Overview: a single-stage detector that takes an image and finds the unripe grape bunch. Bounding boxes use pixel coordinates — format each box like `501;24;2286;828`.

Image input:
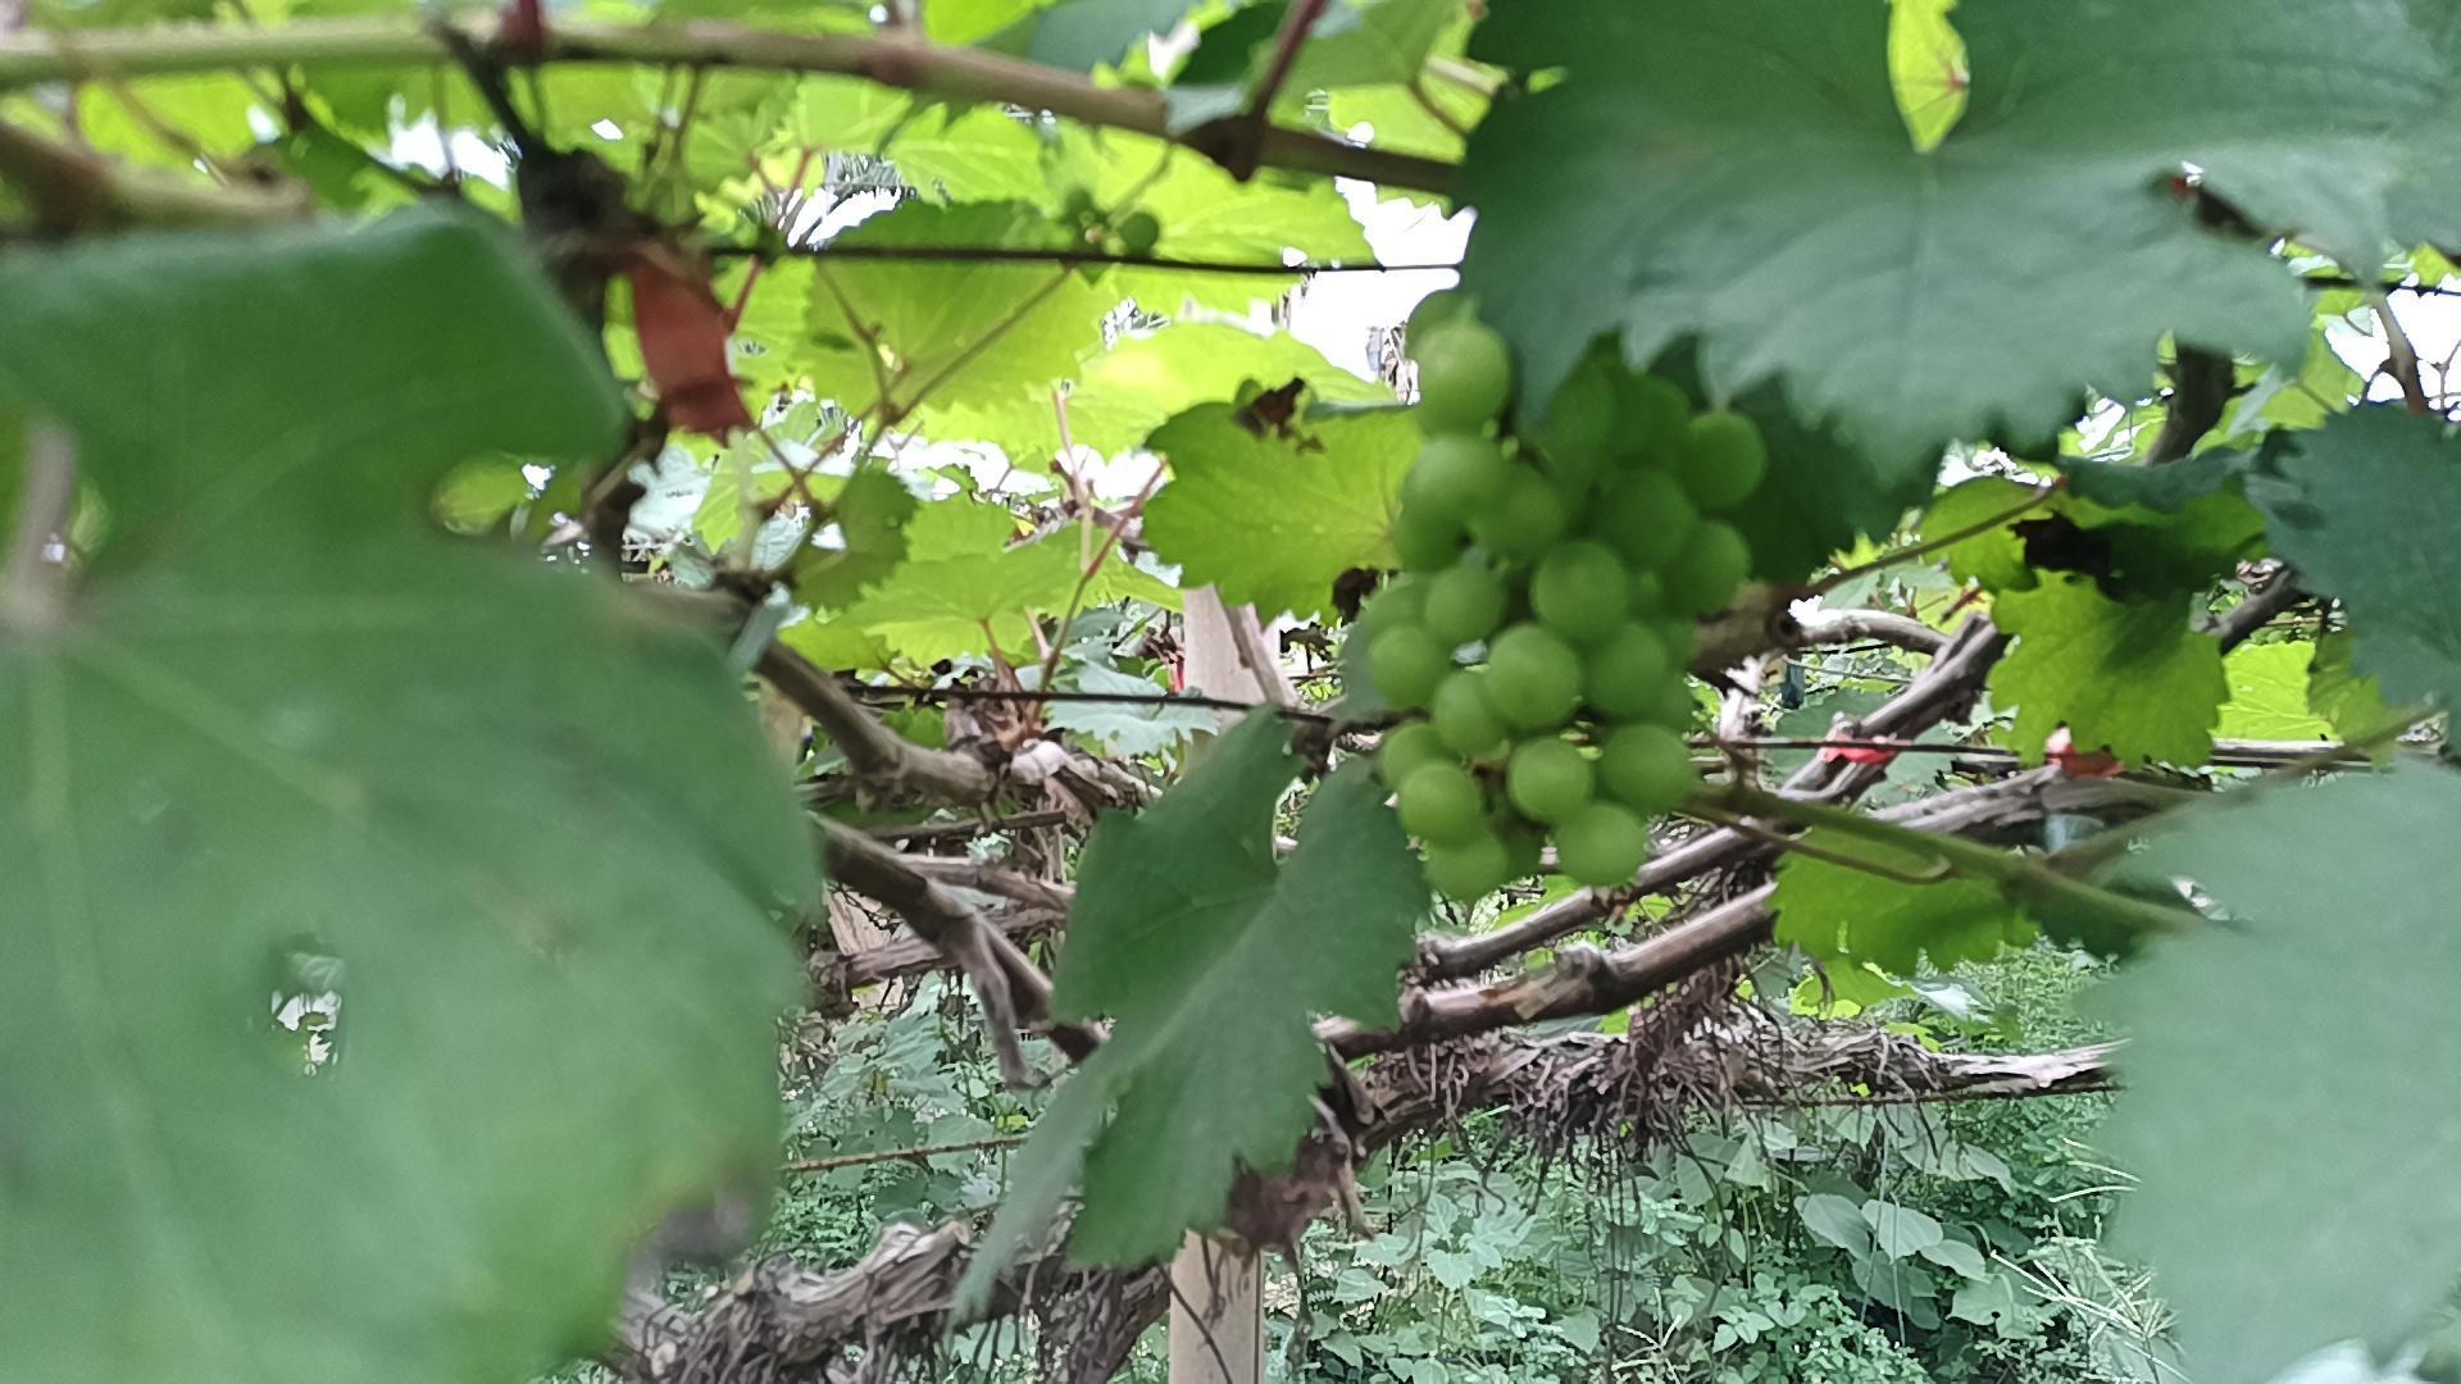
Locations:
1366;296;1766;897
